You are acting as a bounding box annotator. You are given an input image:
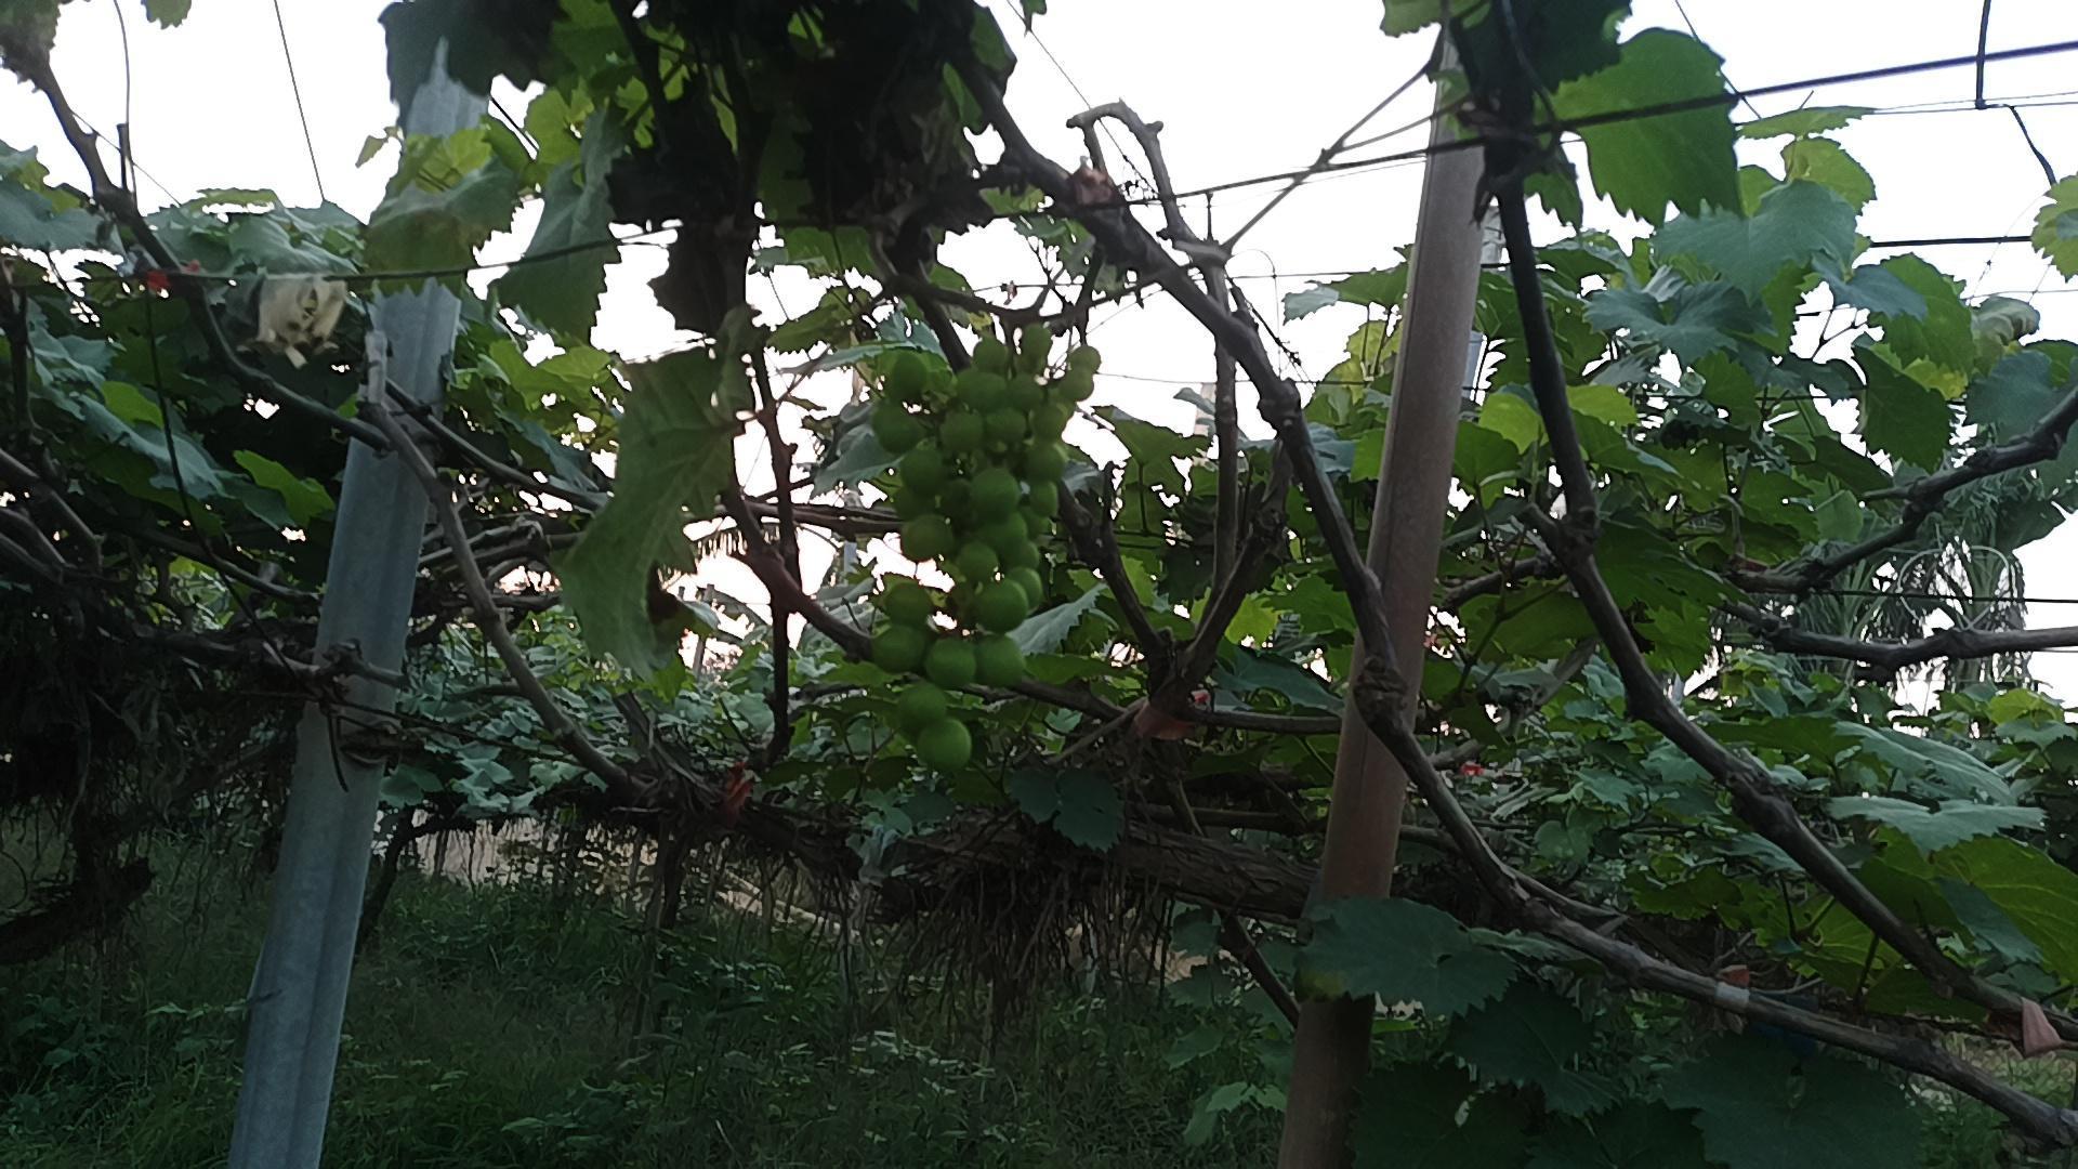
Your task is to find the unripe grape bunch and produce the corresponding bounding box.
[872,330,1097,766]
